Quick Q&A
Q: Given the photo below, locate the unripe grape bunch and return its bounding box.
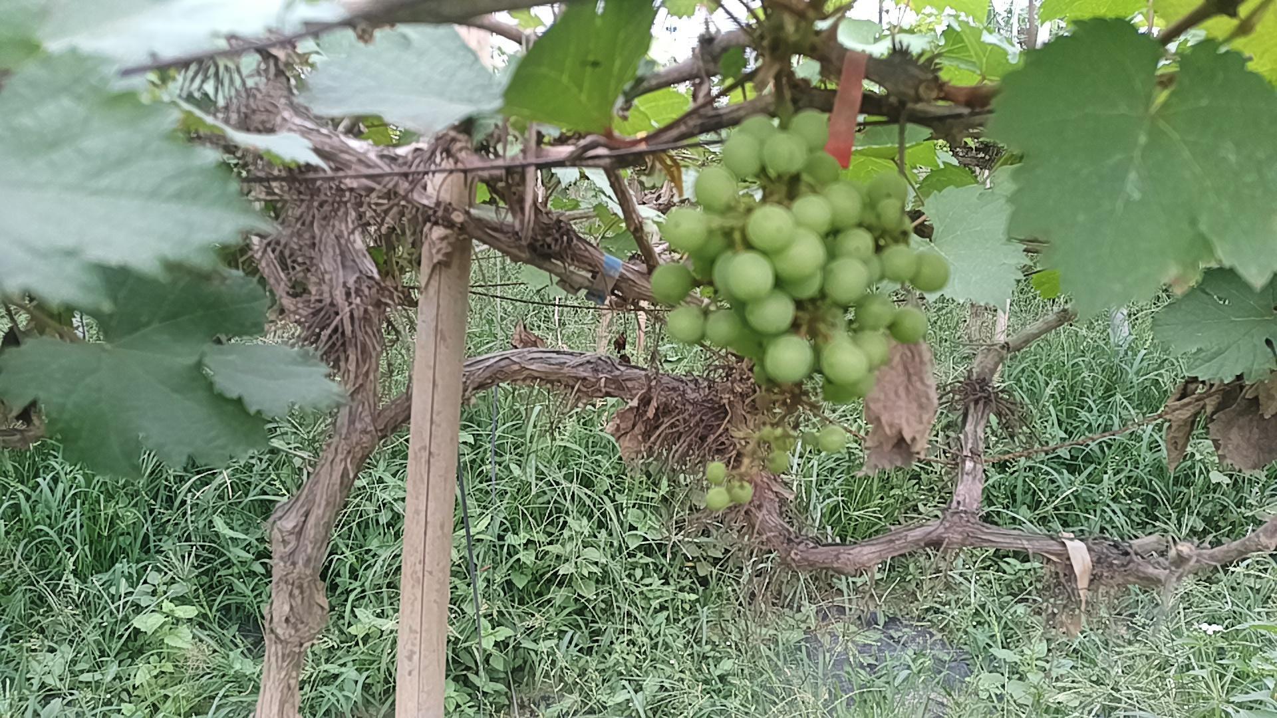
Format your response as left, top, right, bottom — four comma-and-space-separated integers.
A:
652, 113, 948, 402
